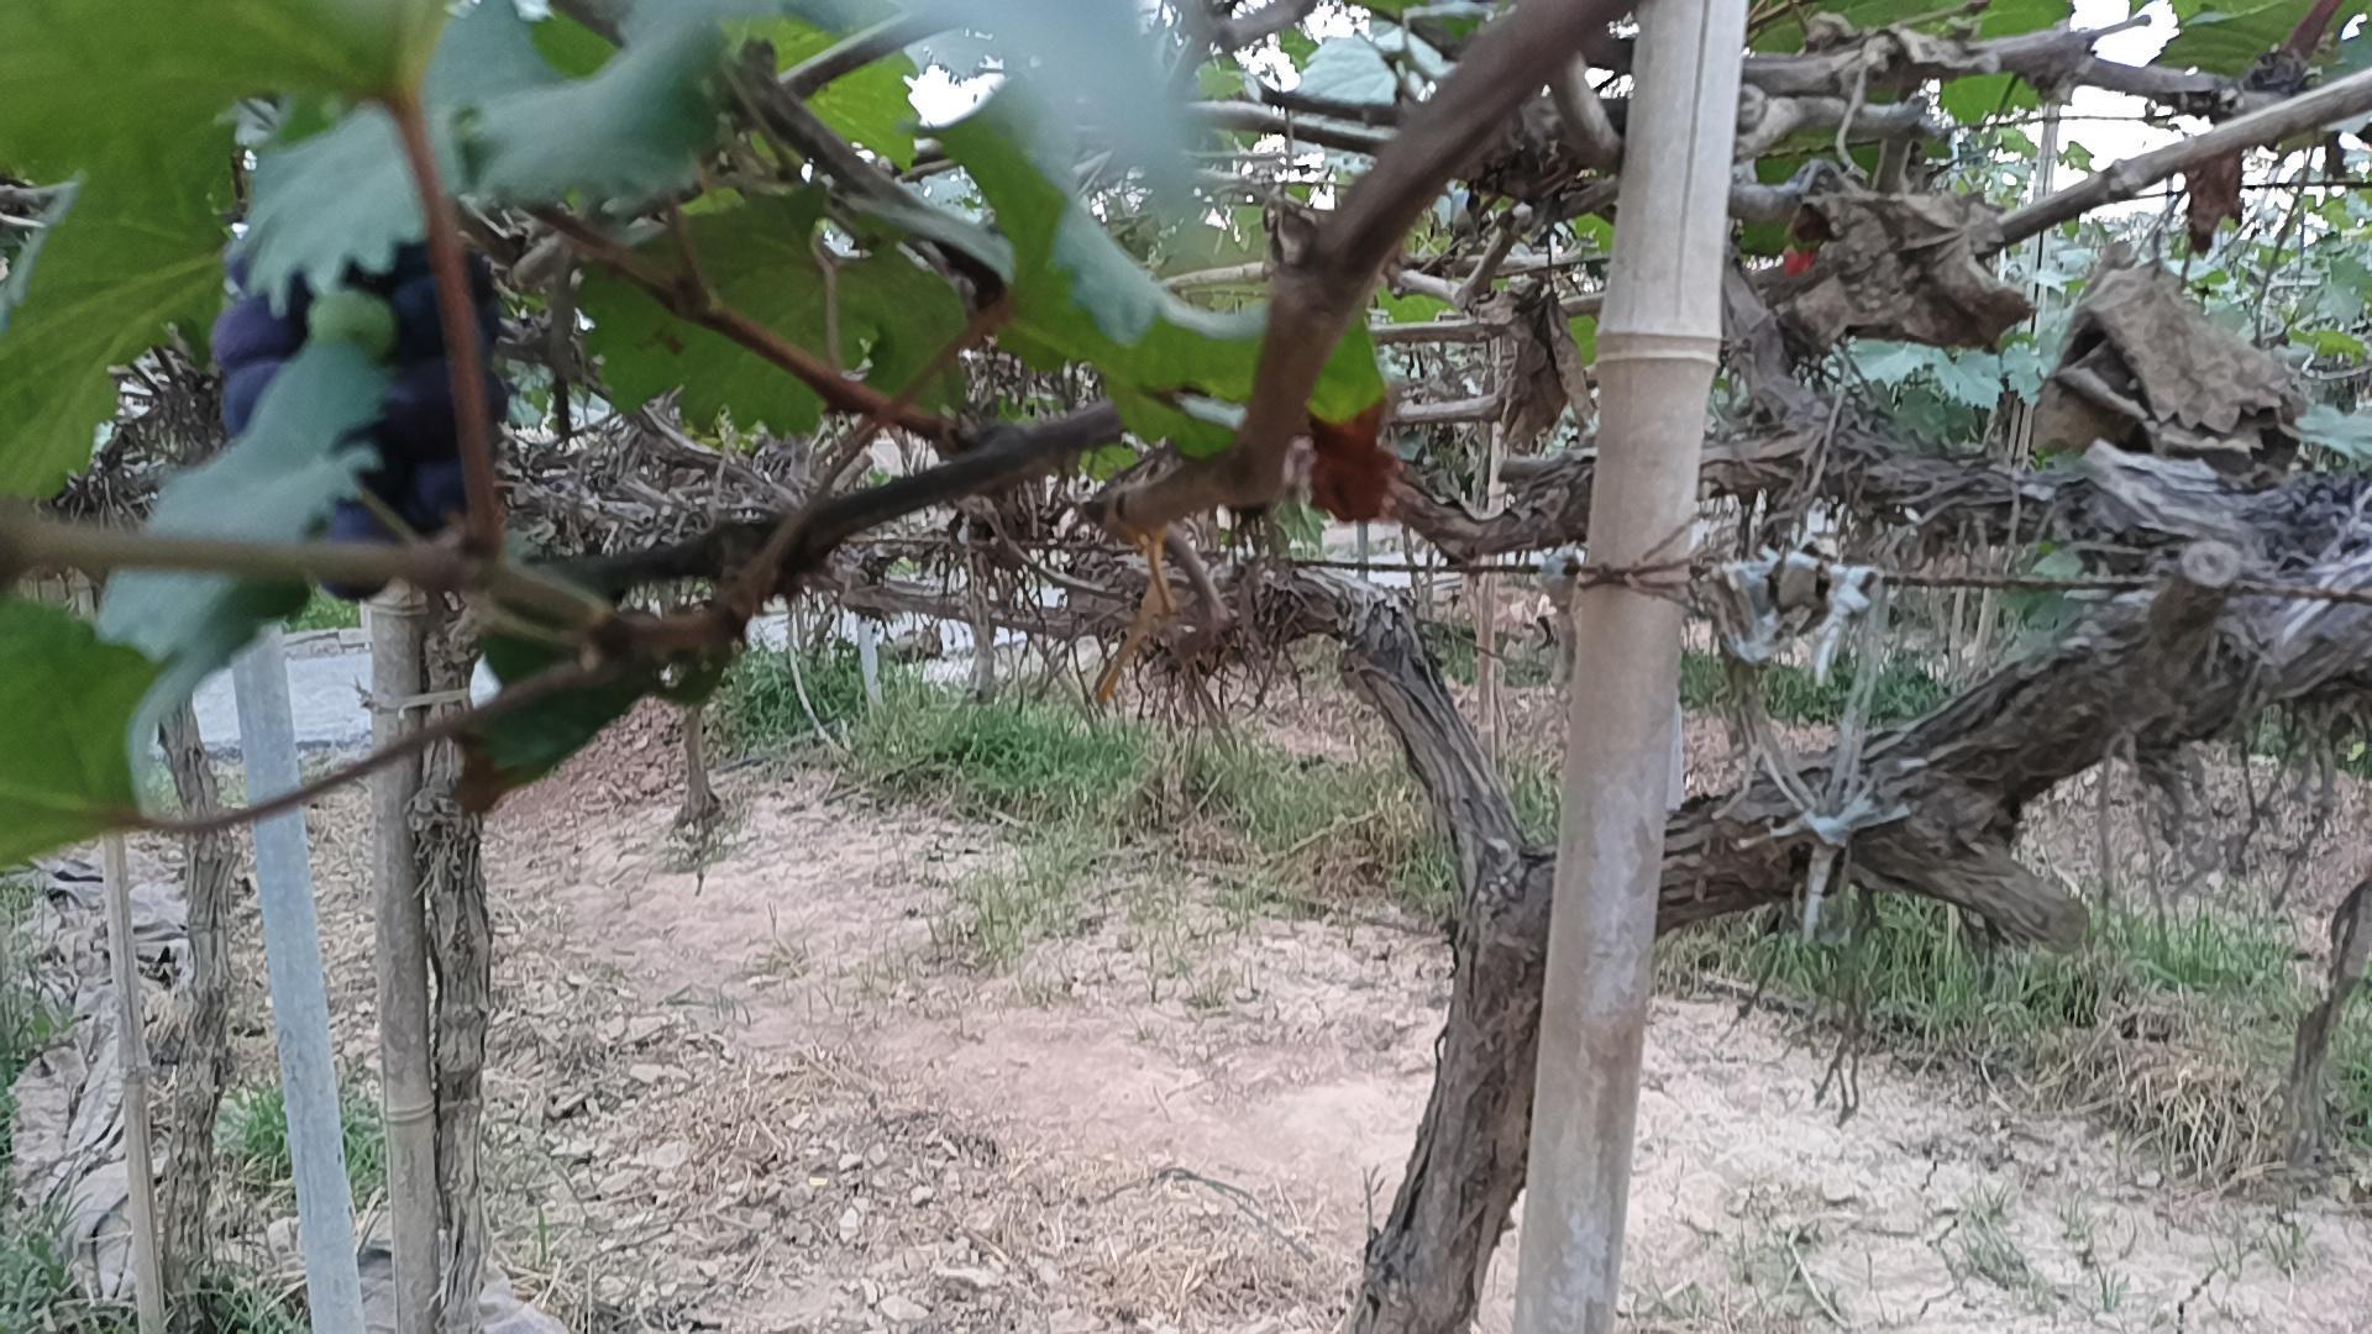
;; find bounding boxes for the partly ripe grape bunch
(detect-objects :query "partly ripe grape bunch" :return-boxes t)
[211,224,510,602]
